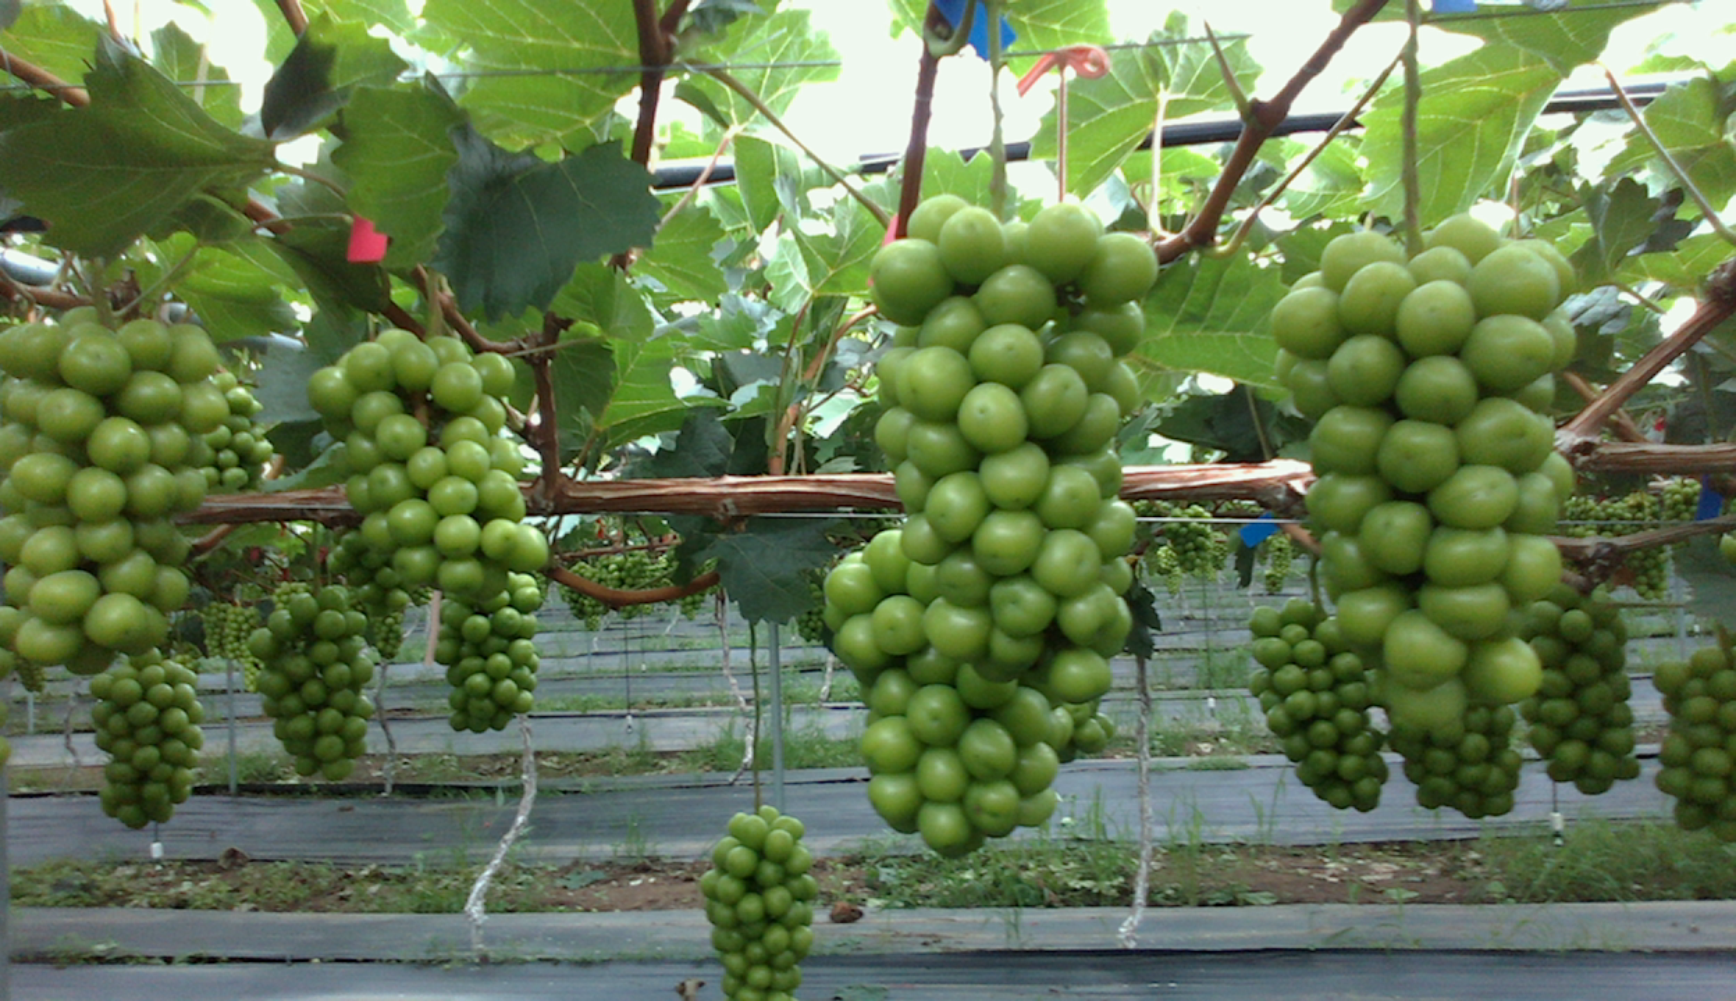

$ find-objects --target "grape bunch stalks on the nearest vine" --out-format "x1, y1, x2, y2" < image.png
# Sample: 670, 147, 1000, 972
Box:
92, 260, 118, 334
427, 270, 438, 341
1402, 1, 1423, 257
989, 1, 1004, 220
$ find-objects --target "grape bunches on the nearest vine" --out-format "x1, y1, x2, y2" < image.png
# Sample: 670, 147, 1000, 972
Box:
305, 328, 548, 599
865, 193, 1159, 703
0, 306, 231, 678
1270, 215, 1576, 738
